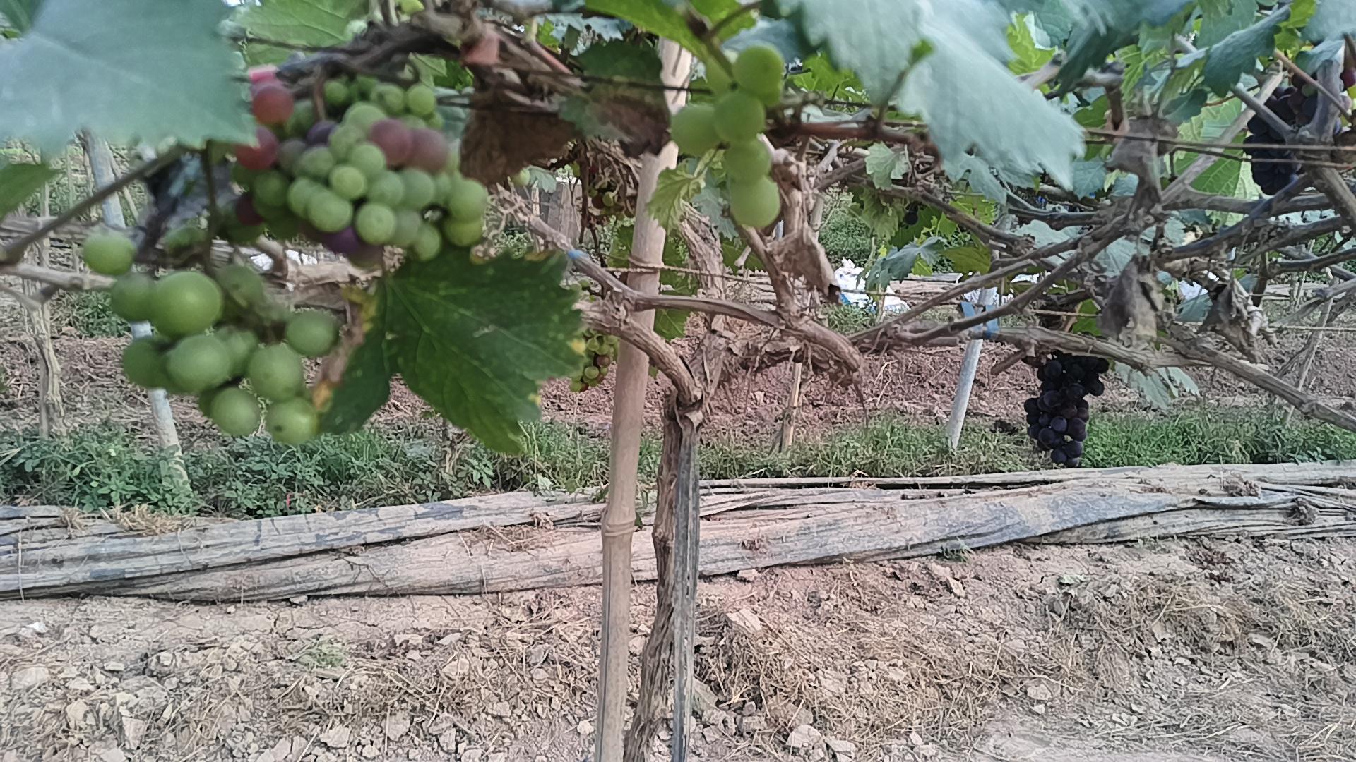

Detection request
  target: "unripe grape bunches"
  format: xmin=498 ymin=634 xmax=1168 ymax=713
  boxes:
xmin=648 ymin=44 xmax=783 ymax=229
xmin=82 ymin=217 xmax=343 ymax=444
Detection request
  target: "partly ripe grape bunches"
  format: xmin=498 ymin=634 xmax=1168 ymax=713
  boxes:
xmin=1244 ymin=74 xmax=1320 ymax=195
xmin=234 ymin=62 xmax=487 ymax=269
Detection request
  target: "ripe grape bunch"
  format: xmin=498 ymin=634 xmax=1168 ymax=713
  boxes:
xmin=1023 ymin=351 xmax=1108 ymax=467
